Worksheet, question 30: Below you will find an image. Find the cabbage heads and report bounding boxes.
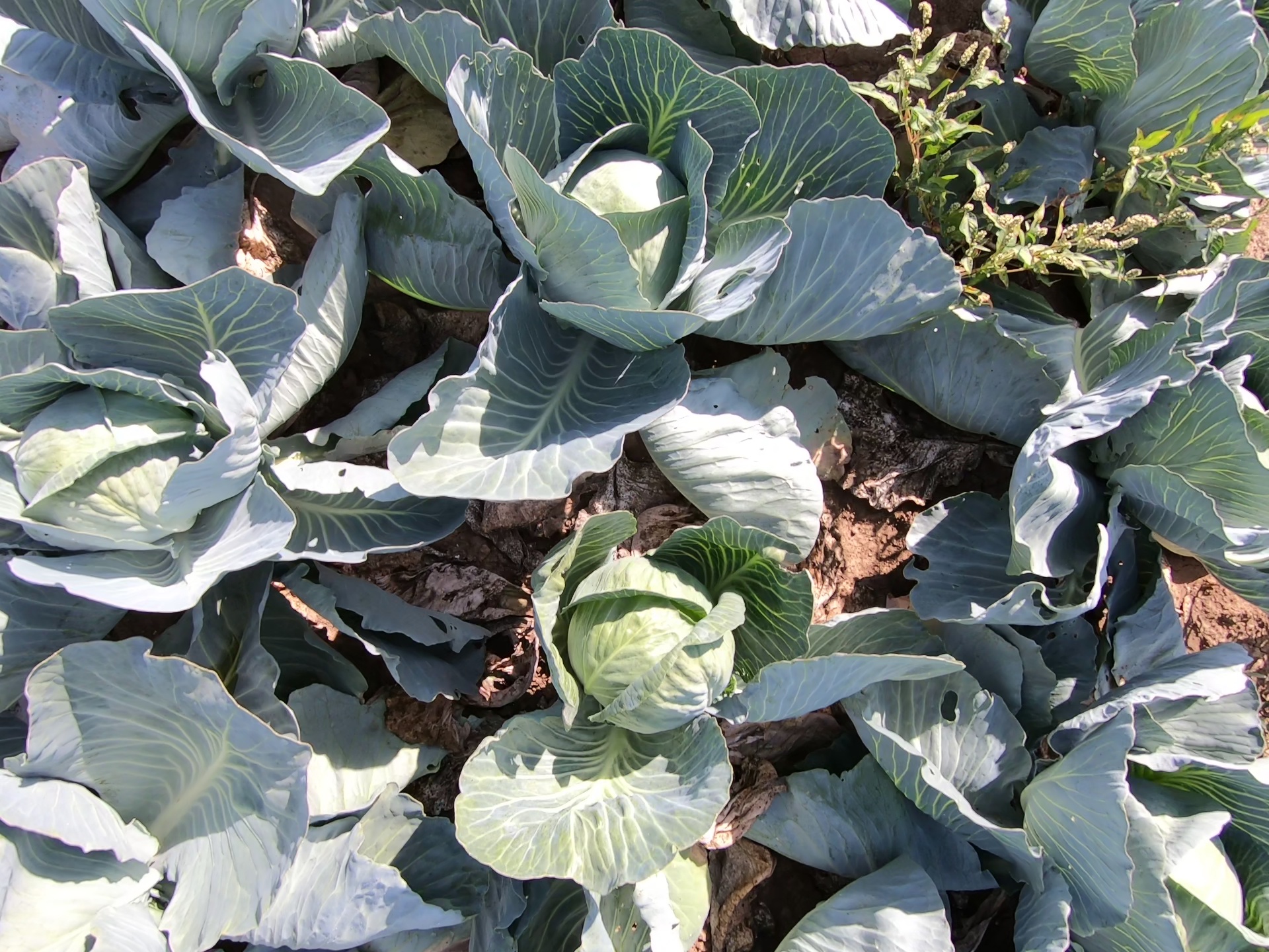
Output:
[1044,773,1239,949]
[14,383,206,514]
[565,561,732,721]
[550,149,699,306]
[1142,375,1266,493]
